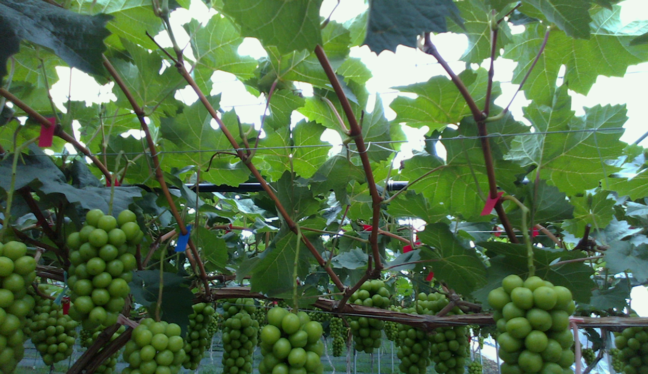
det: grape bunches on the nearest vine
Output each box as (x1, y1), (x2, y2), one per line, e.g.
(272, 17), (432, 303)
(66, 209), (143, 330)
(122, 318), (187, 373)
(0, 241), (36, 373)
(487, 274), (576, 373)
(258, 306), (324, 373)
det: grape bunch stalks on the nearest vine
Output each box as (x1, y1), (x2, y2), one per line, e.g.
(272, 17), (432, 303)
(292, 225), (303, 314)
(503, 195), (535, 277)
(0, 135), (40, 244)
(155, 233), (178, 322)
(107, 150), (123, 215)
